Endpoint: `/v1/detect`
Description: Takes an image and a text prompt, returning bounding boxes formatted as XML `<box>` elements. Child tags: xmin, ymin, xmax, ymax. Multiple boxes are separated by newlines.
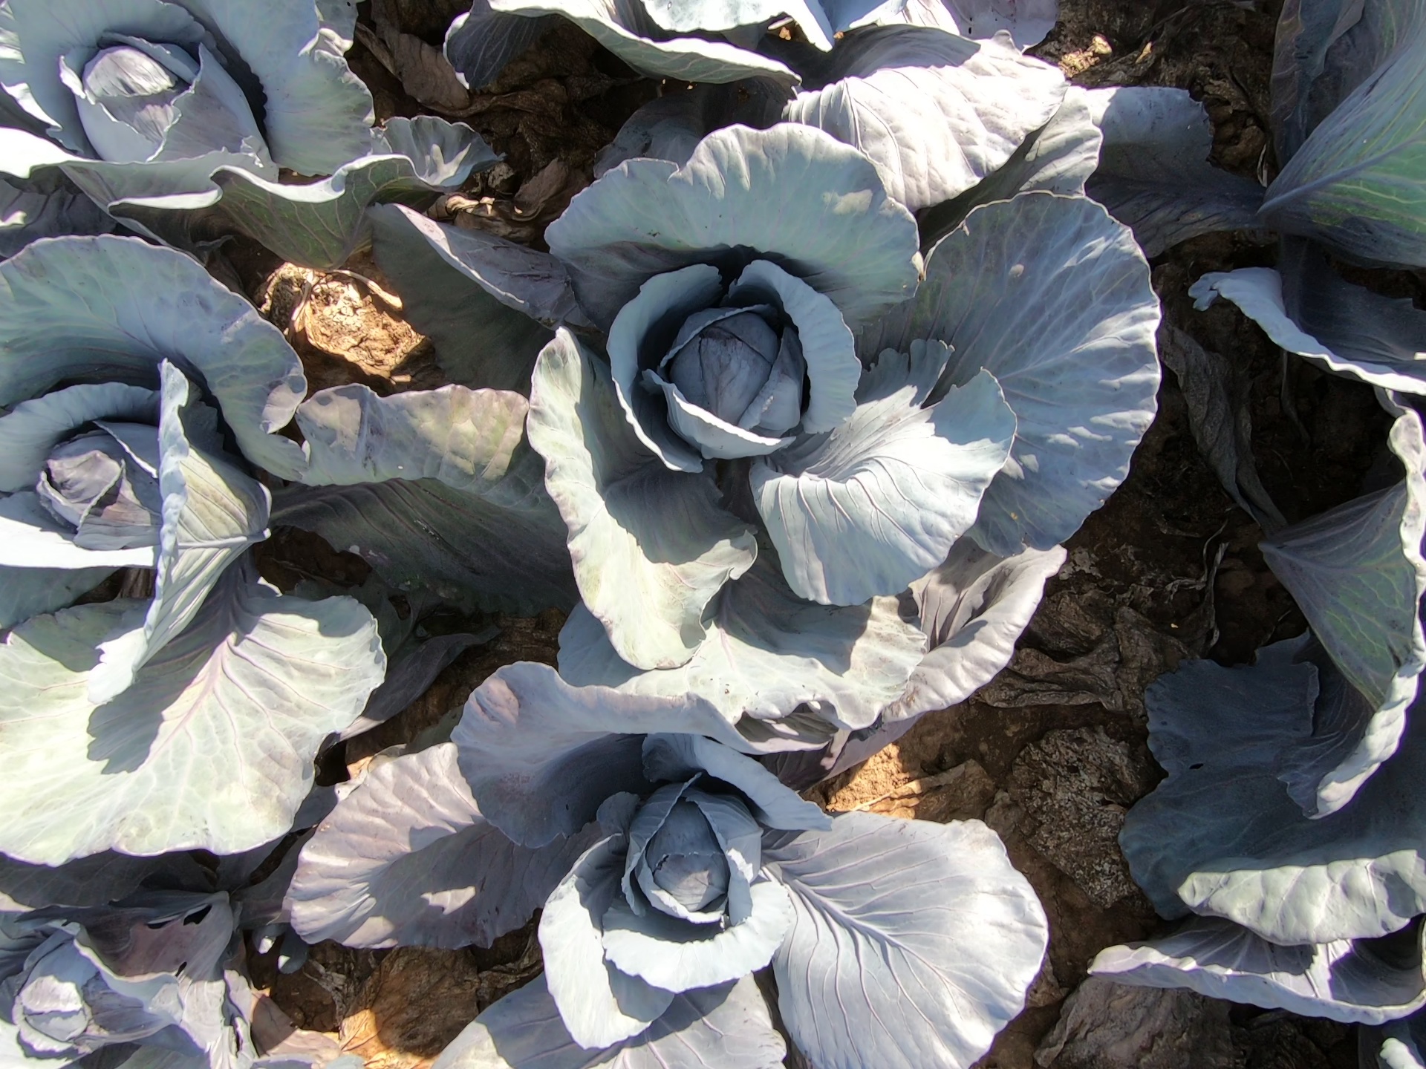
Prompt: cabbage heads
<box><xmin>79</xmin><ymin>44</ymin><xmax>218</xmax><ymax>171</ymax></box>
<box><xmin>637</xmin><ymin>800</ymin><xmax>746</xmax><ymax>911</ymax></box>
<box><xmin>42</xmin><ymin>425</ymin><xmax>216</xmax><ymax>552</ymax></box>
<box><xmin>677</xmin><ymin>310</ymin><xmax>797</xmax><ymax>435</ymax></box>
<box><xmin>21</xmin><ymin>916</ymin><xmax>195</xmax><ymax>1045</ymax></box>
